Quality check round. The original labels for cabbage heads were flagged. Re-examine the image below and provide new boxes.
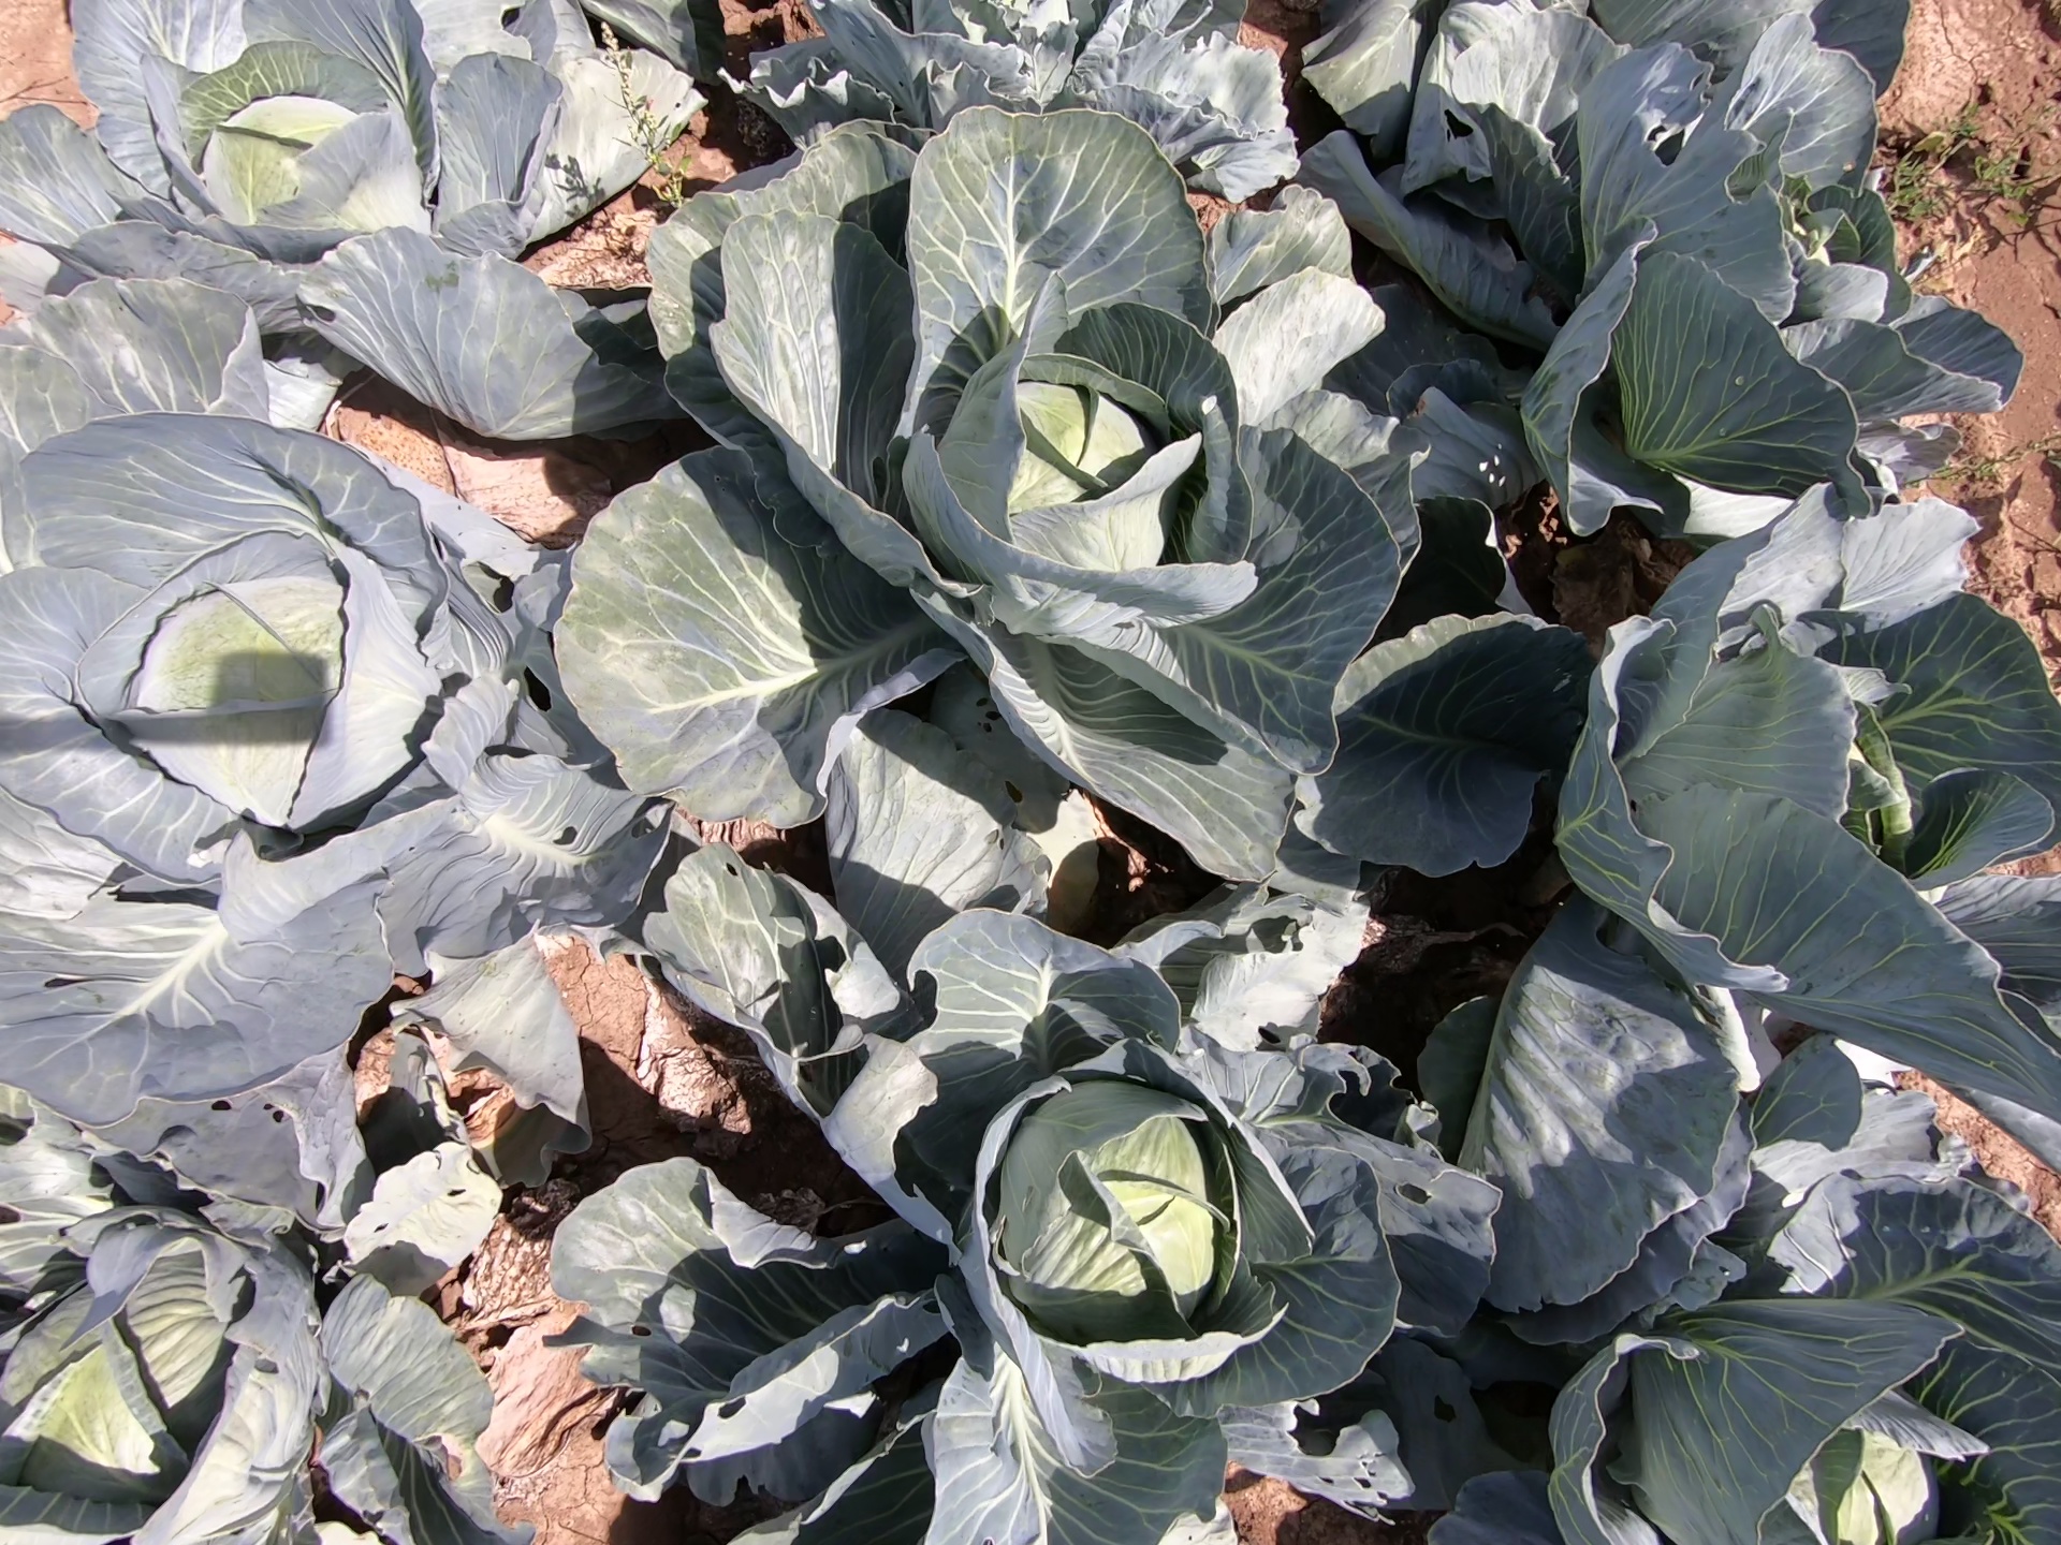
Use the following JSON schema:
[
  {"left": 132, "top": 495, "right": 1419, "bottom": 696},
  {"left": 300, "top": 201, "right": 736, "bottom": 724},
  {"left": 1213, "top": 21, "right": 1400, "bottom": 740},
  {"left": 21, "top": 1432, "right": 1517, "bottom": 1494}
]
[
  {"left": 1649, "top": 671, "right": 1894, "bottom": 899},
  {"left": 204, "top": 94, "right": 404, "bottom": 240},
  {"left": 126, "top": 576, "right": 433, "bottom": 833},
  {"left": 1675, "top": 1340, "right": 1942, "bottom": 1544},
  {"left": 995, "top": 1080, "right": 1222, "bottom": 1347},
  {"left": 936, "top": 369, "right": 1172, "bottom": 602},
  {"left": 1683, "top": 188, "right": 1835, "bottom": 339},
  {"left": 3, "top": 1238, "right": 292, "bottom": 1530}
]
